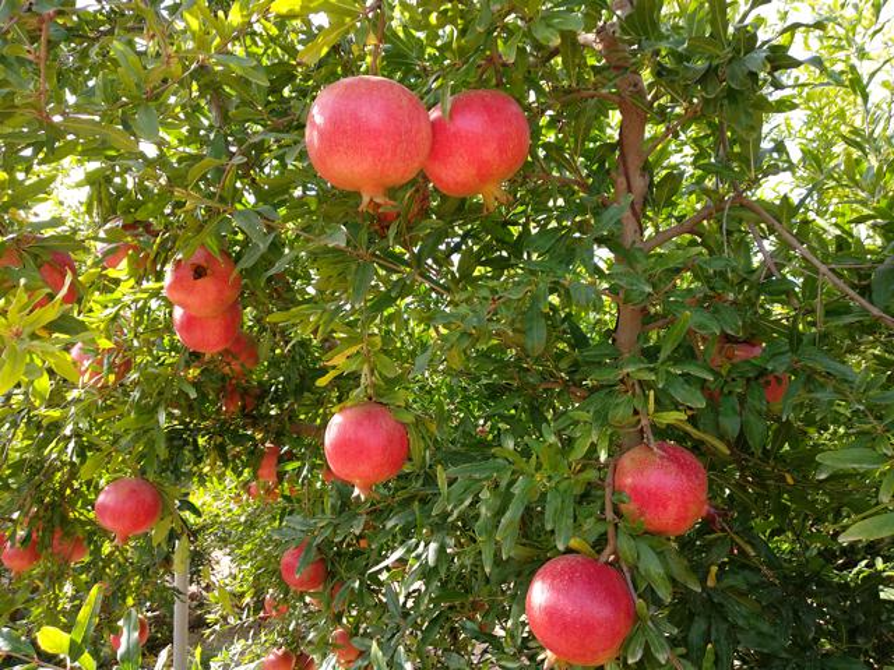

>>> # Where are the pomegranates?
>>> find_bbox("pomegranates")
[0,233,80,310]
[95,218,158,269]
[95,477,163,546]
[263,645,316,670]
[52,526,87,563]
[249,445,281,502]
[165,243,242,317]
[0,532,41,579]
[613,441,707,536]
[724,342,791,403]
[281,537,328,592]
[205,331,260,377]
[110,614,148,652]
[172,297,243,352]
[332,627,360,666]
[420,88,531,214]
[525,553,641,670]
[305,75,433,221]
[223,375,256,413]
[257,596,289,621]
[68,335,131,381]
[324,401,408,501]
